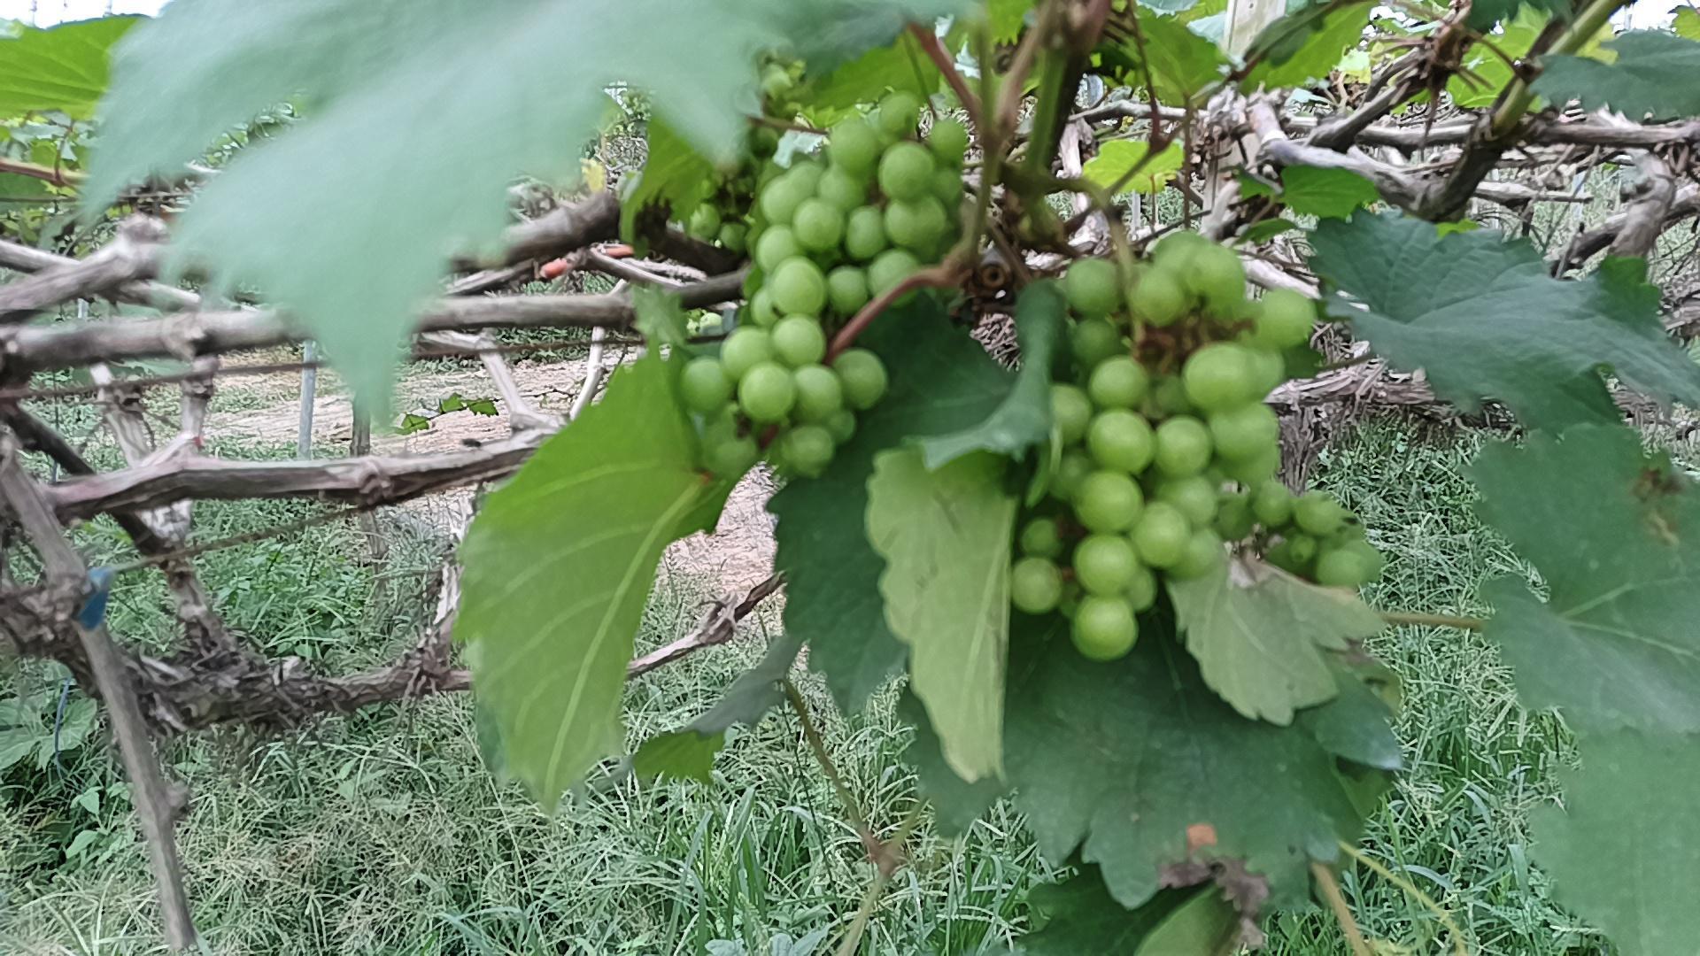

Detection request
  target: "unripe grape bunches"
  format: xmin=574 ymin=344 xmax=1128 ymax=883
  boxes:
xmin=692 ymin=58 xmax=806 ymax=256
xmin=680 ymin=94 xmax=968 ymax=479
xmin=1011 ymin=230 xmax=1381 ymax=659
